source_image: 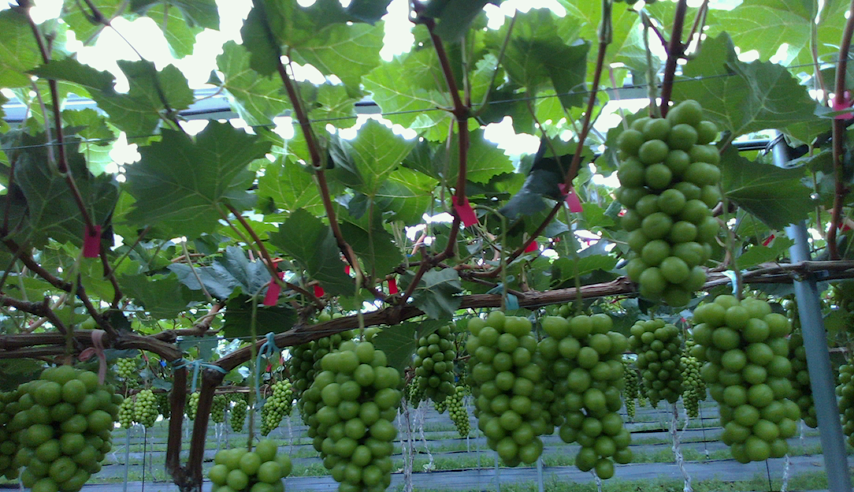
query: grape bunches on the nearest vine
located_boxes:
[12,365,125,491]
[617,100,721,307]
[302,341,403,491]
[464,310,556,467]
[692,295,800,464]
[209,439,293,491]
[536,314,635,480]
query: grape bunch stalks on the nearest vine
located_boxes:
[247,281,270,452]
[472,205,507,314]
[723,199,741,301]
[64,247,83,365]
[562,201,582,315]
[346,245,365,342]
[640,11,668,118]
